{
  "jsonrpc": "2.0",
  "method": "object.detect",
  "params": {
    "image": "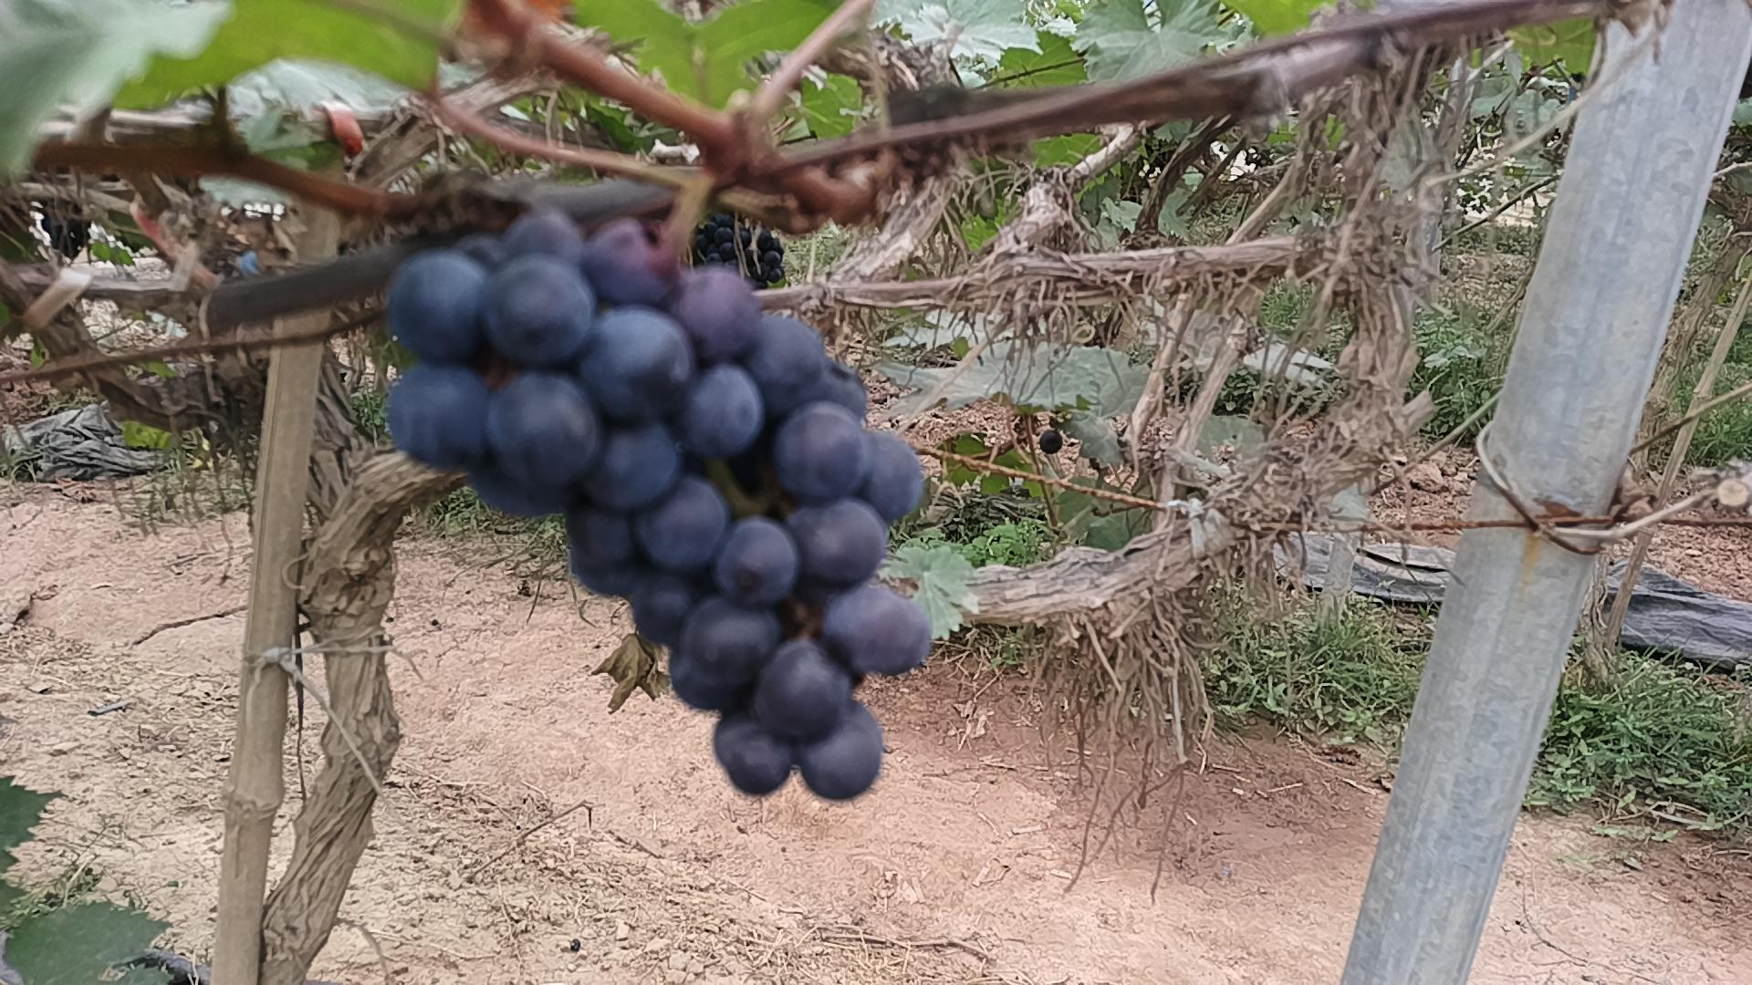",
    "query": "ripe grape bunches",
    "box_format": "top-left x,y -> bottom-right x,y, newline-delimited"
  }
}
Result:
34,194 -> 92,262
388,209 -> 931,799
690,210 -> 790,285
